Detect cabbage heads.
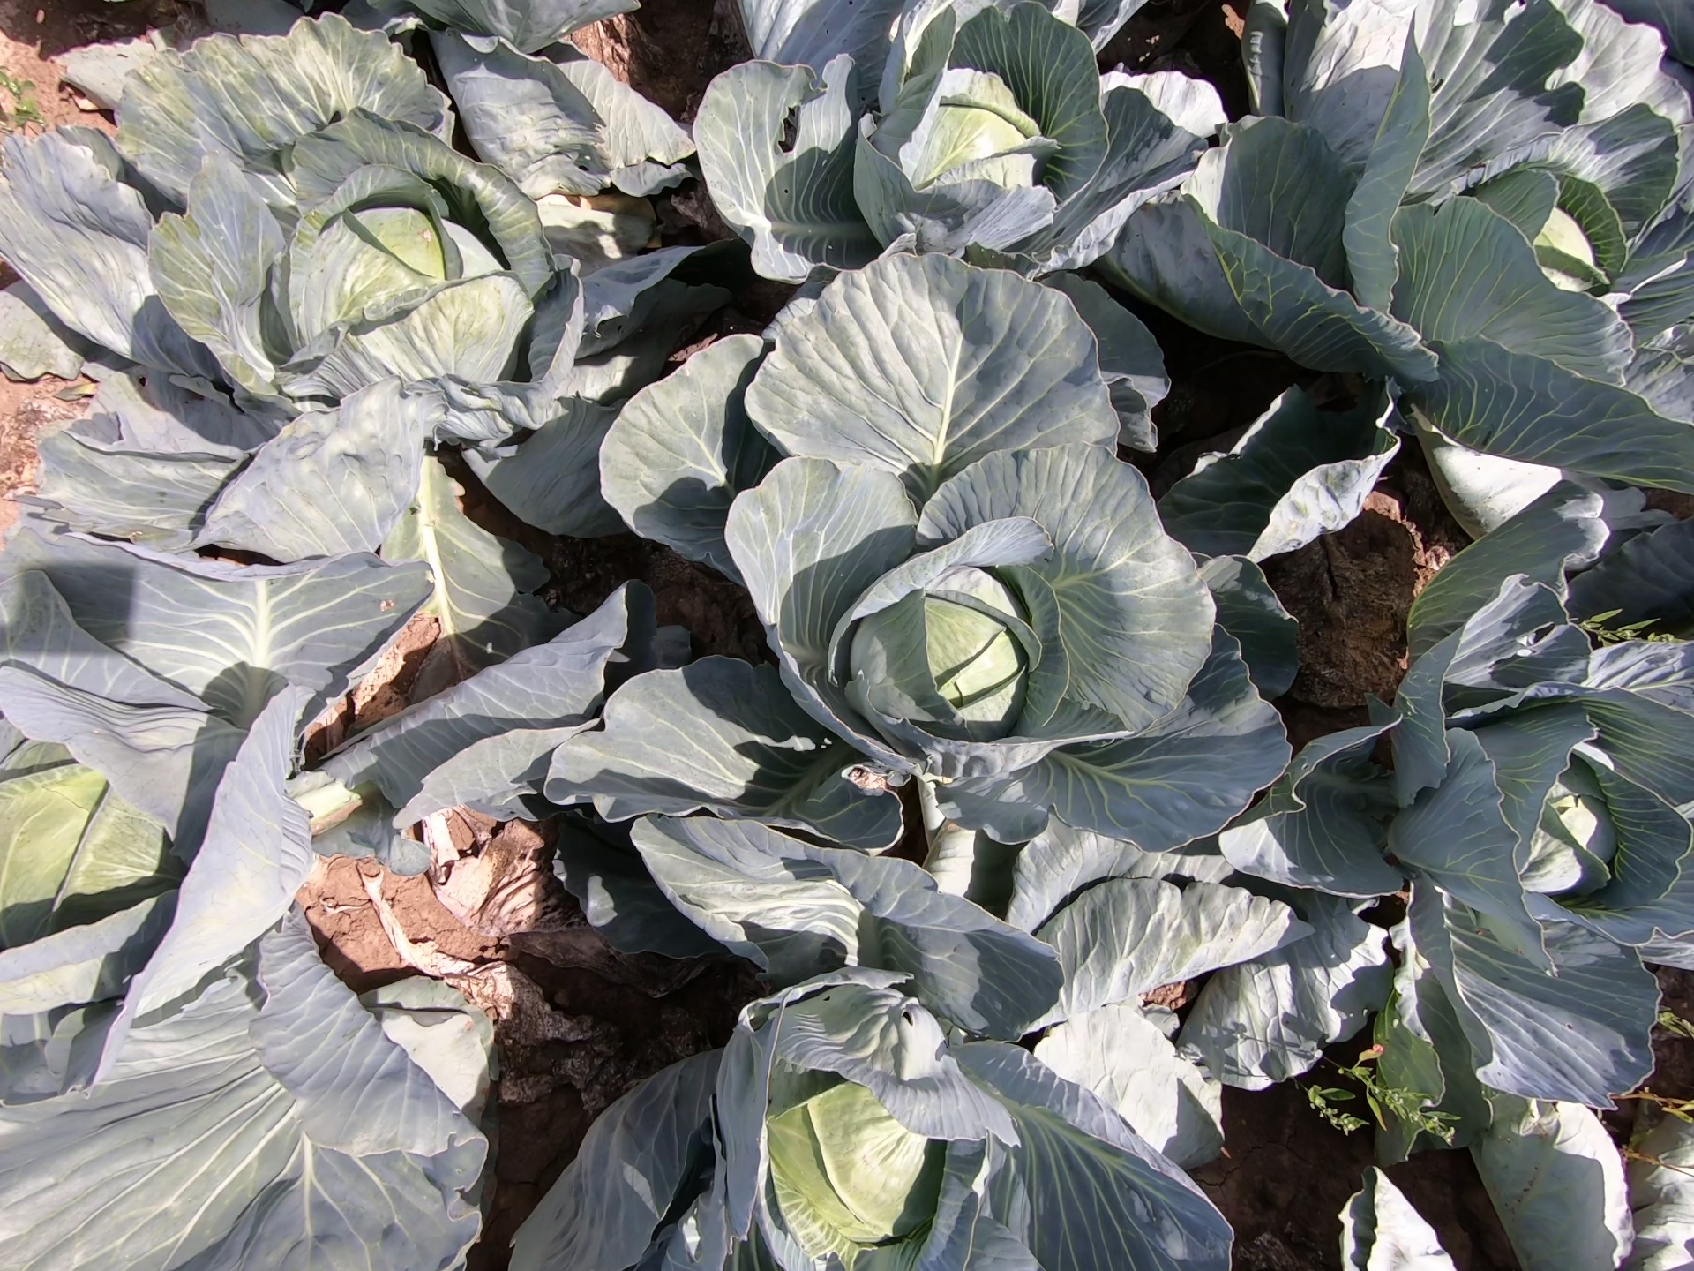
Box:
[276,205,519,421]
[5,704,291,1016]
[739,1010,959,1252]
[1445,189,1603,328]
[864,68,1042,259]
[1460,743,1623,899]
[855,552,1031,749]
